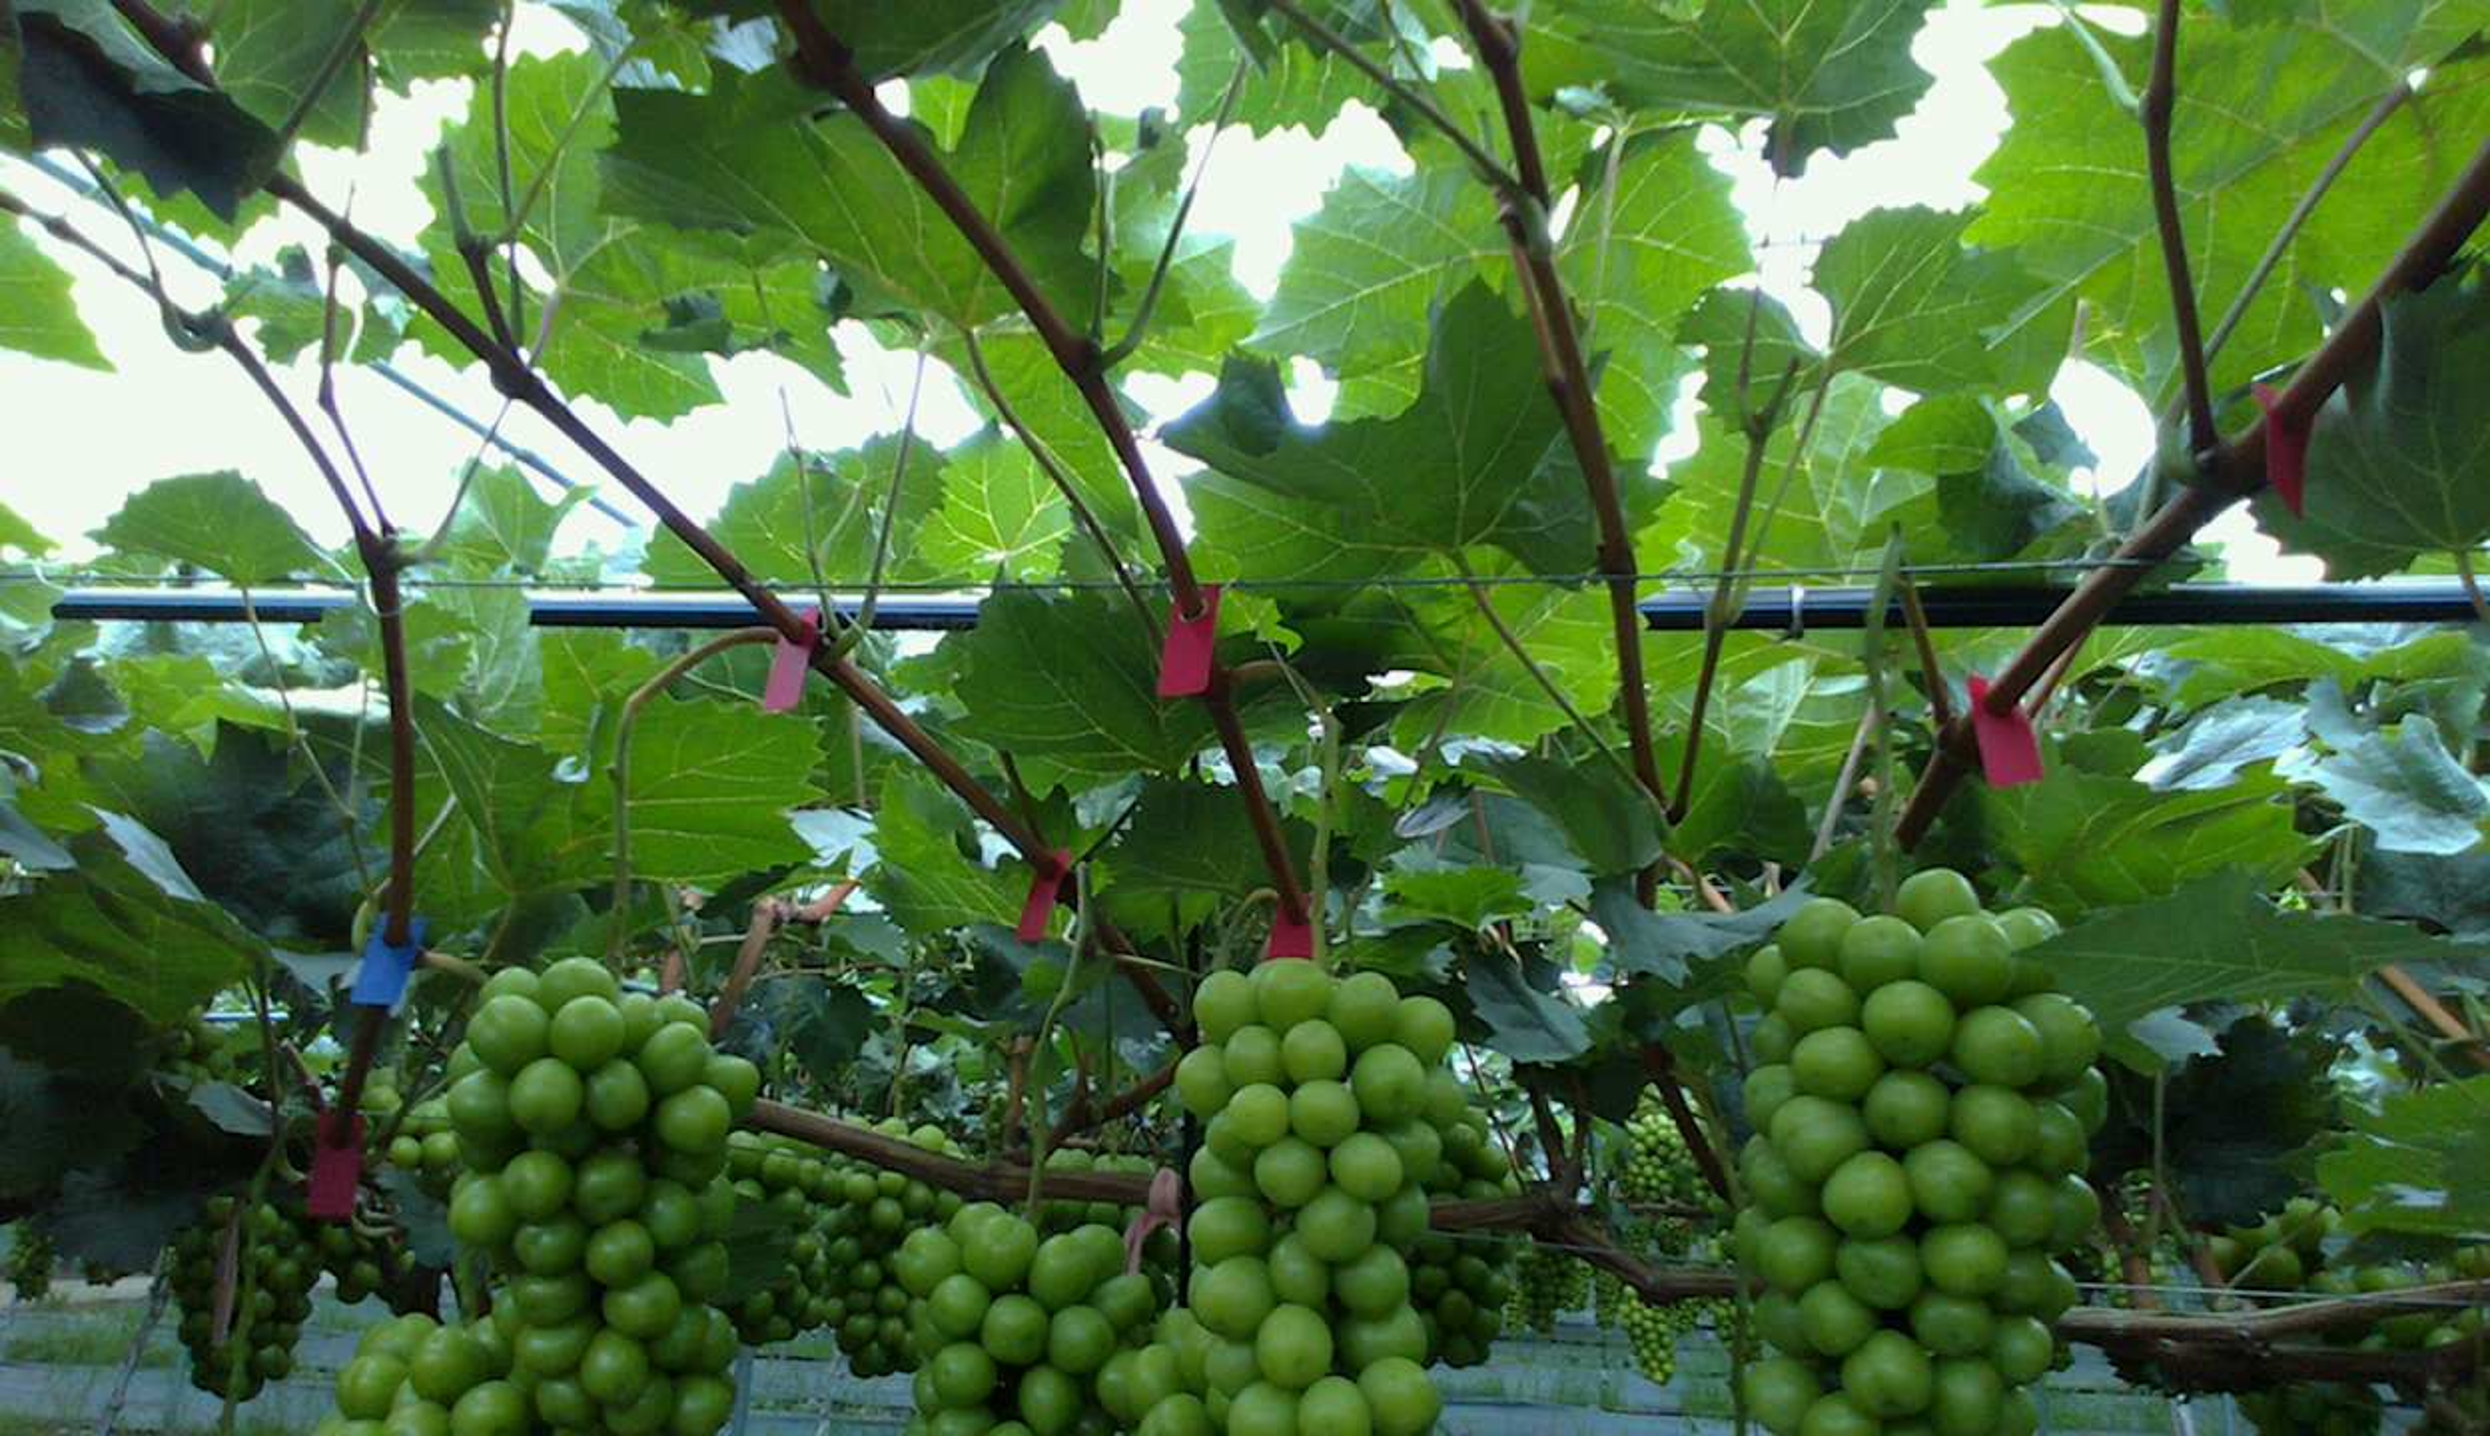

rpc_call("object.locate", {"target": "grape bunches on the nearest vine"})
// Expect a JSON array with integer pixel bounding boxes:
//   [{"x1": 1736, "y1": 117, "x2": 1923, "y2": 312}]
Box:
[
  {"x1": 445, "y1": 955, "x2": 760, "y2": 1434},
  {"x1": 1734, "y1": 872, "x2": 2103, "y2": 1434},
  {"x1": 1129, "y1": 953, "x2": 1464, "y2": 1434},
  {"x1": 900, "y1": 1203, "x2": 1153, "y2": 1434},
  {"x1": 313, "y1": 1312, "x2": 545, "y2": 1434}
]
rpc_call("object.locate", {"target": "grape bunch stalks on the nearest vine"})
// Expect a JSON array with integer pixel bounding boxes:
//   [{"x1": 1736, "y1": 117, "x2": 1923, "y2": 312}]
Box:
[
  {"x1": 1024, "y1": 862, "x2": 1091, "y2": 1229},
  {"x1": 1864, "y1": 515, "x2": 1909, "y2": 913},
  {"x1": 457, "y1": 1258, "x2": 479, "y2": 1326},
  {"x1": 605, "y1": 626, "x2": 762, "y2": 975},
  {"x1": 1295, "y1": 674, "x2": 1339, "y2": 967}
]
